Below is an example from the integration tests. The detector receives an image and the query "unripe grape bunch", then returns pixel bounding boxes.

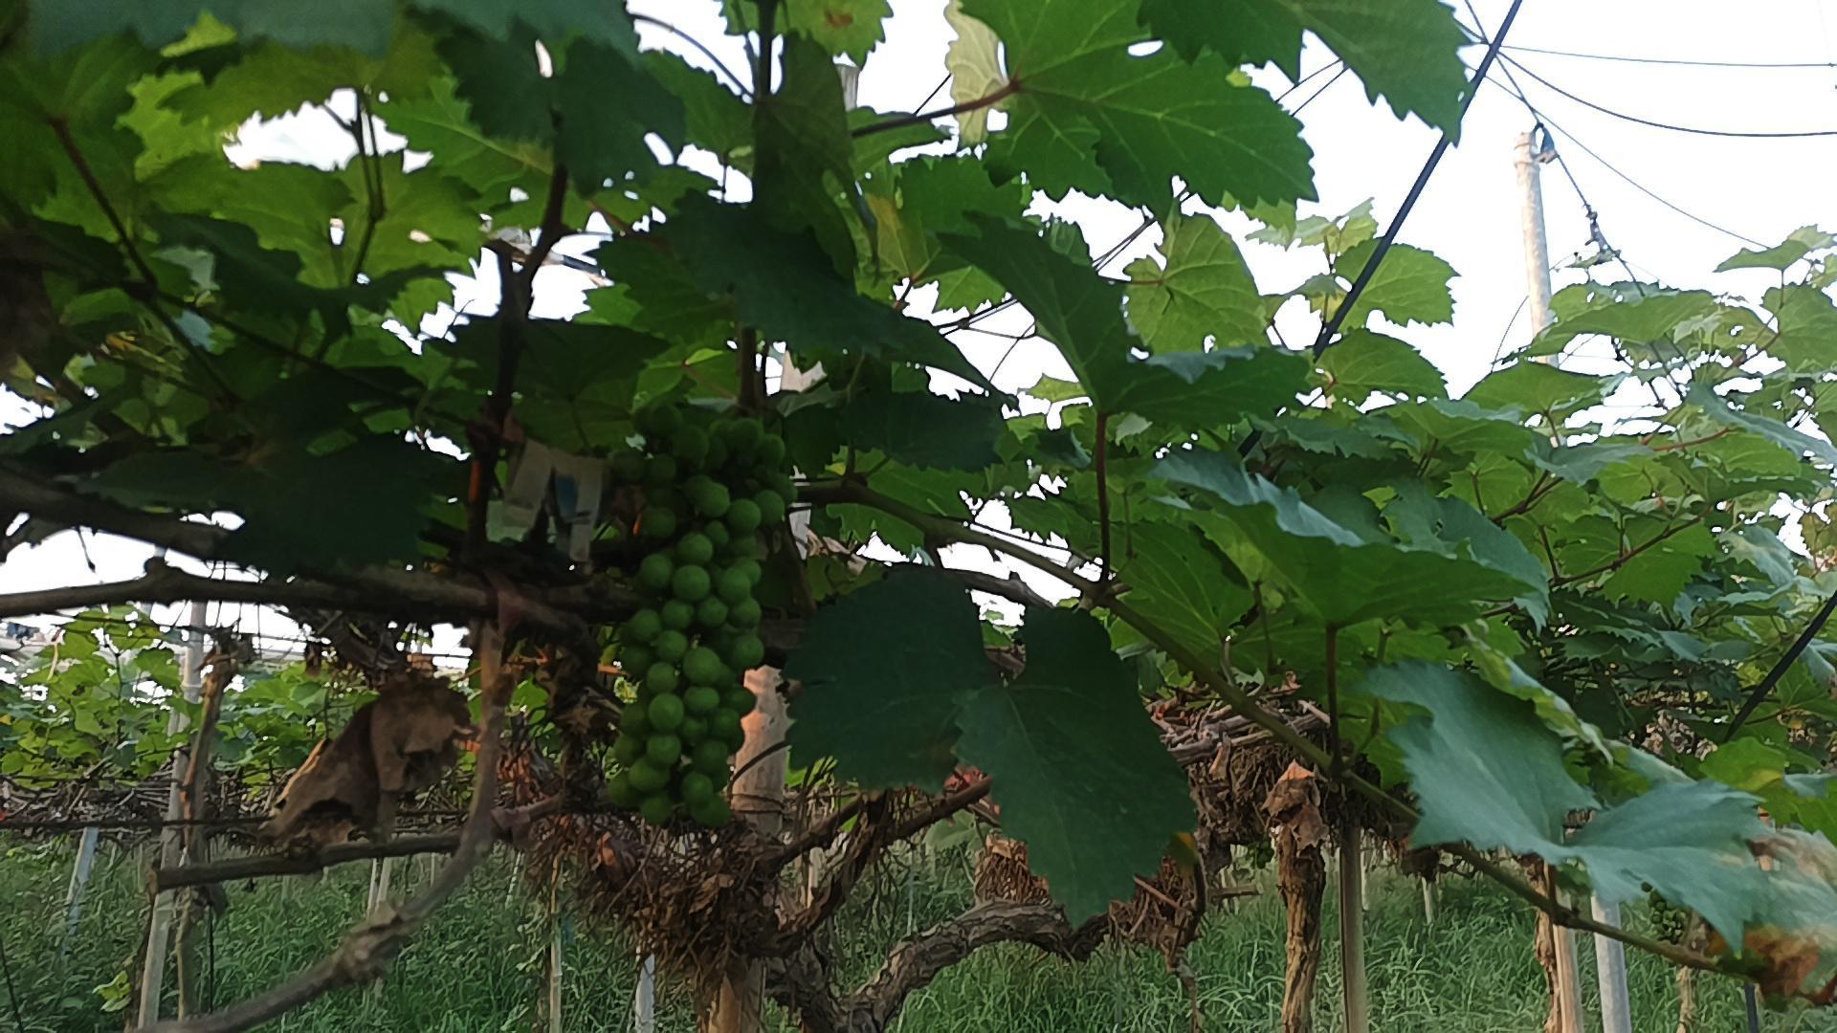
[608,409,798,824]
